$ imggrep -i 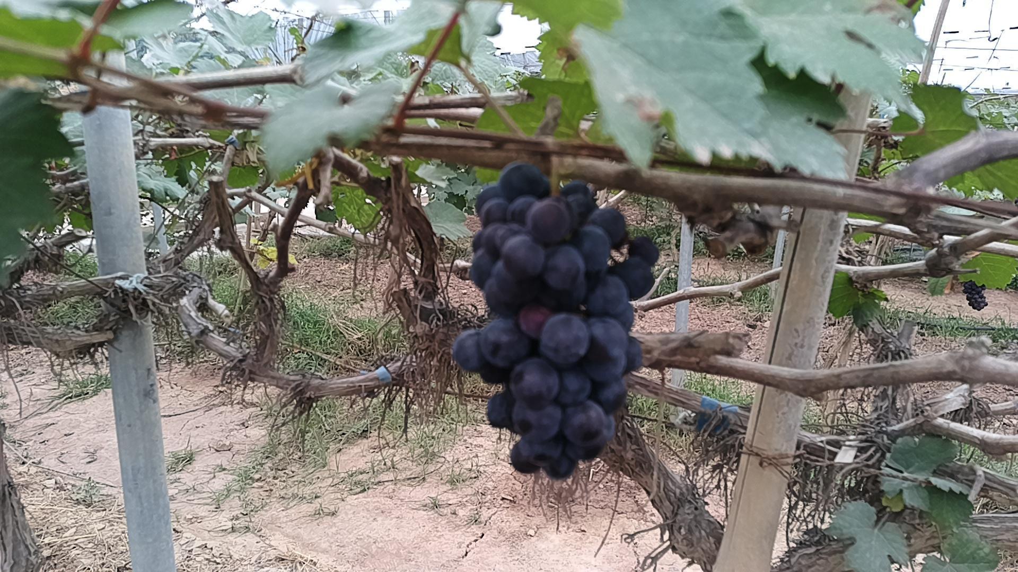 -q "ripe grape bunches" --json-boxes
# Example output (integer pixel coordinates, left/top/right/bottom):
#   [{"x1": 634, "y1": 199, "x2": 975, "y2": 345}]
[
  {"x1": 961, "y1": 280, "x2": 988, "y2": 310},
  {"x1": 452, "y1": 163, "x2": 659, "y2": 478}
]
